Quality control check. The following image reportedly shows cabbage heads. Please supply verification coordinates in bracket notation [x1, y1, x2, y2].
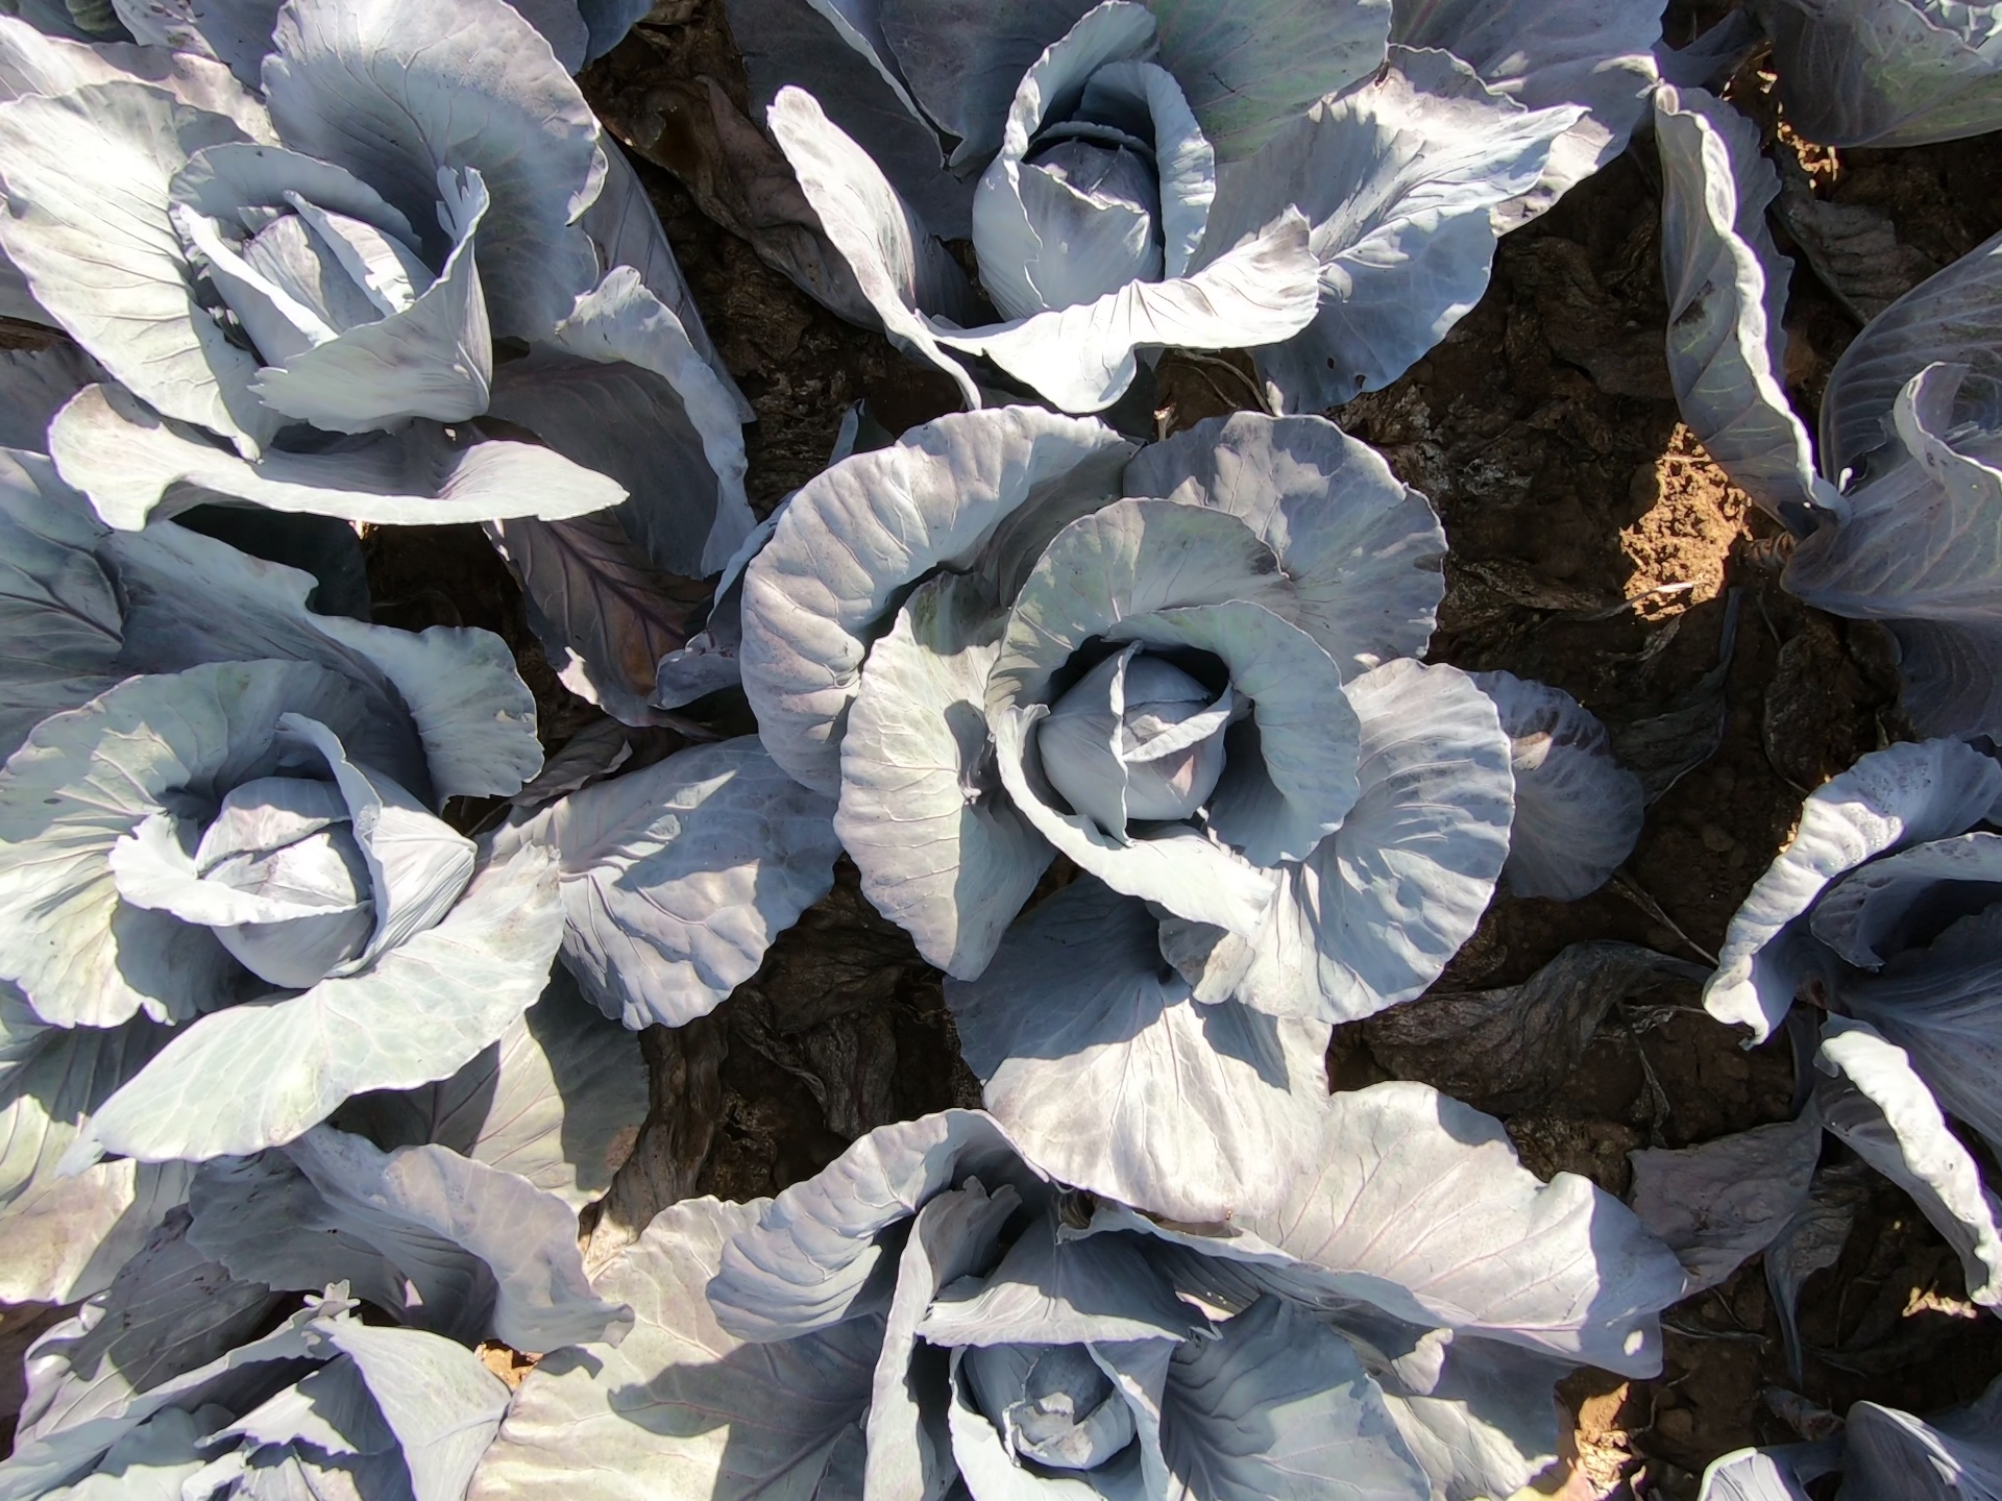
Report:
[193, 785, 411, 974]
[239, 202, 450, 413]
[222, 1344, 470, 1501]
[1007, 136, 1159, 305]
[980, 1250, 1159, 1470]
[1035, 661, 1228, 822]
